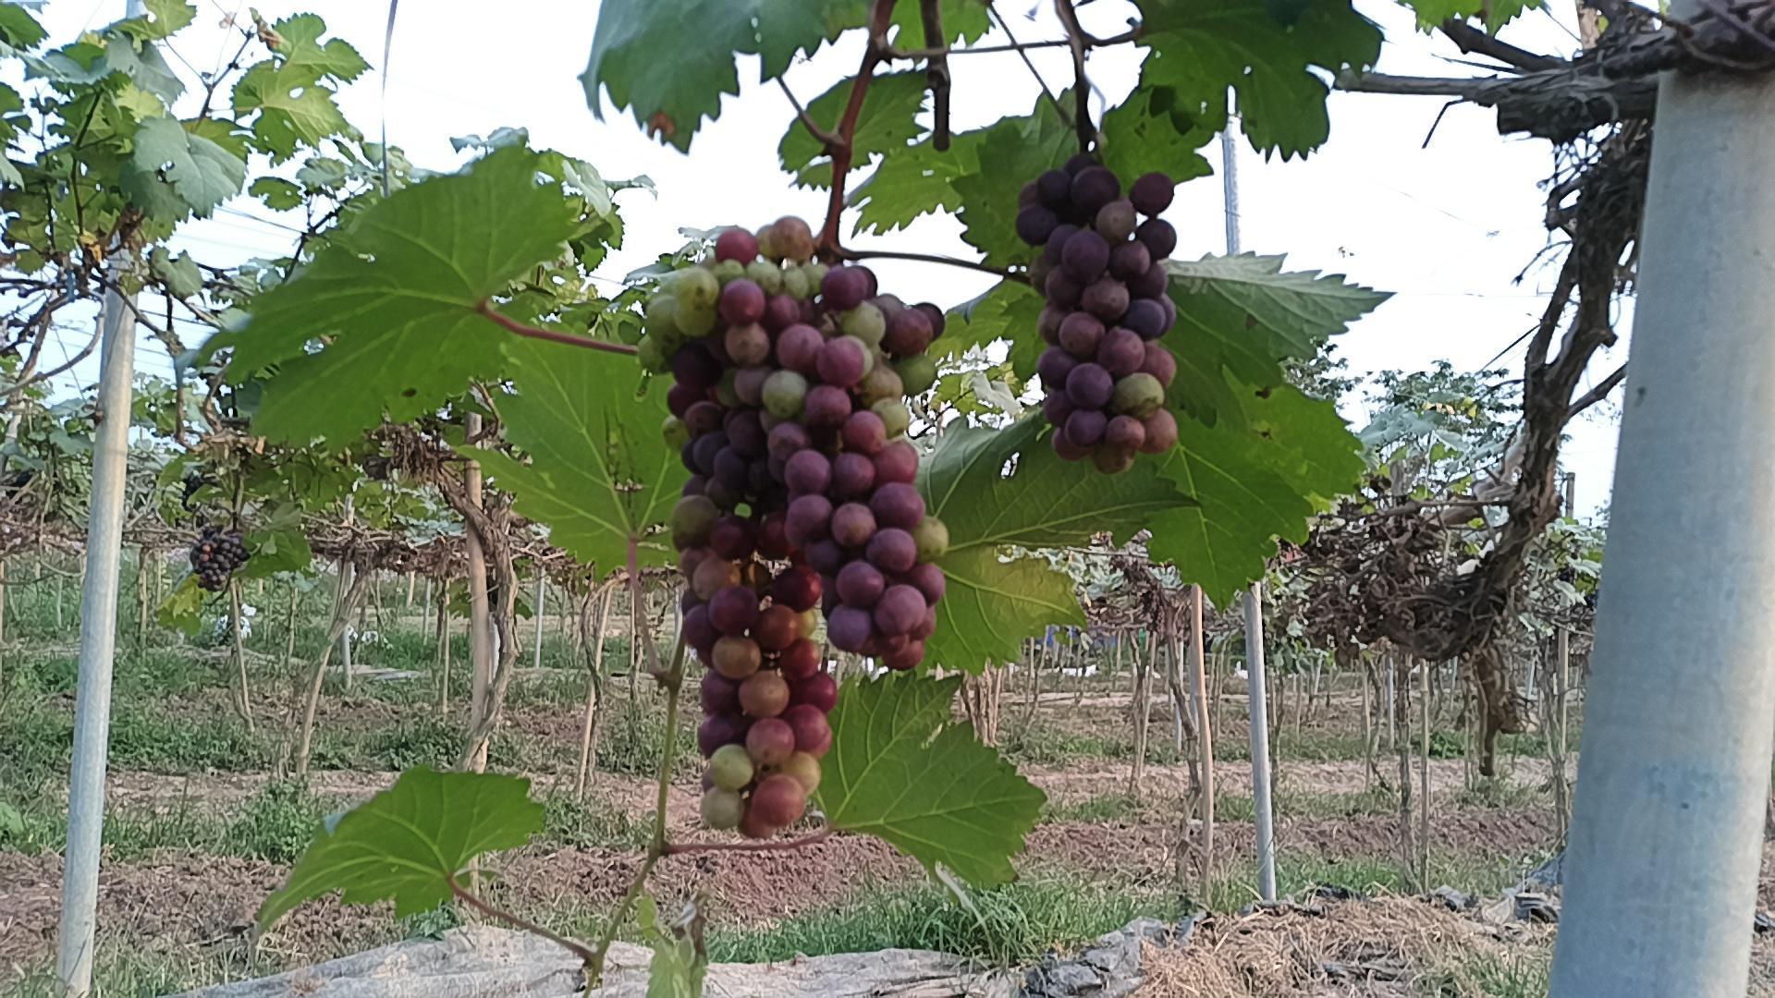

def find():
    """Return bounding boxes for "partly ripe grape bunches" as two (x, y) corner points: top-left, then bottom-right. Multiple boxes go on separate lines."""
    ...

(638, 217), (947, 668)
(666, 387), (836, 838)
(1015, 155), (1177, 473)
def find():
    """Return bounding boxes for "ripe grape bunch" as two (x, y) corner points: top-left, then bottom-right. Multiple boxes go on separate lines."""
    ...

(190, 527), (251, 591)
